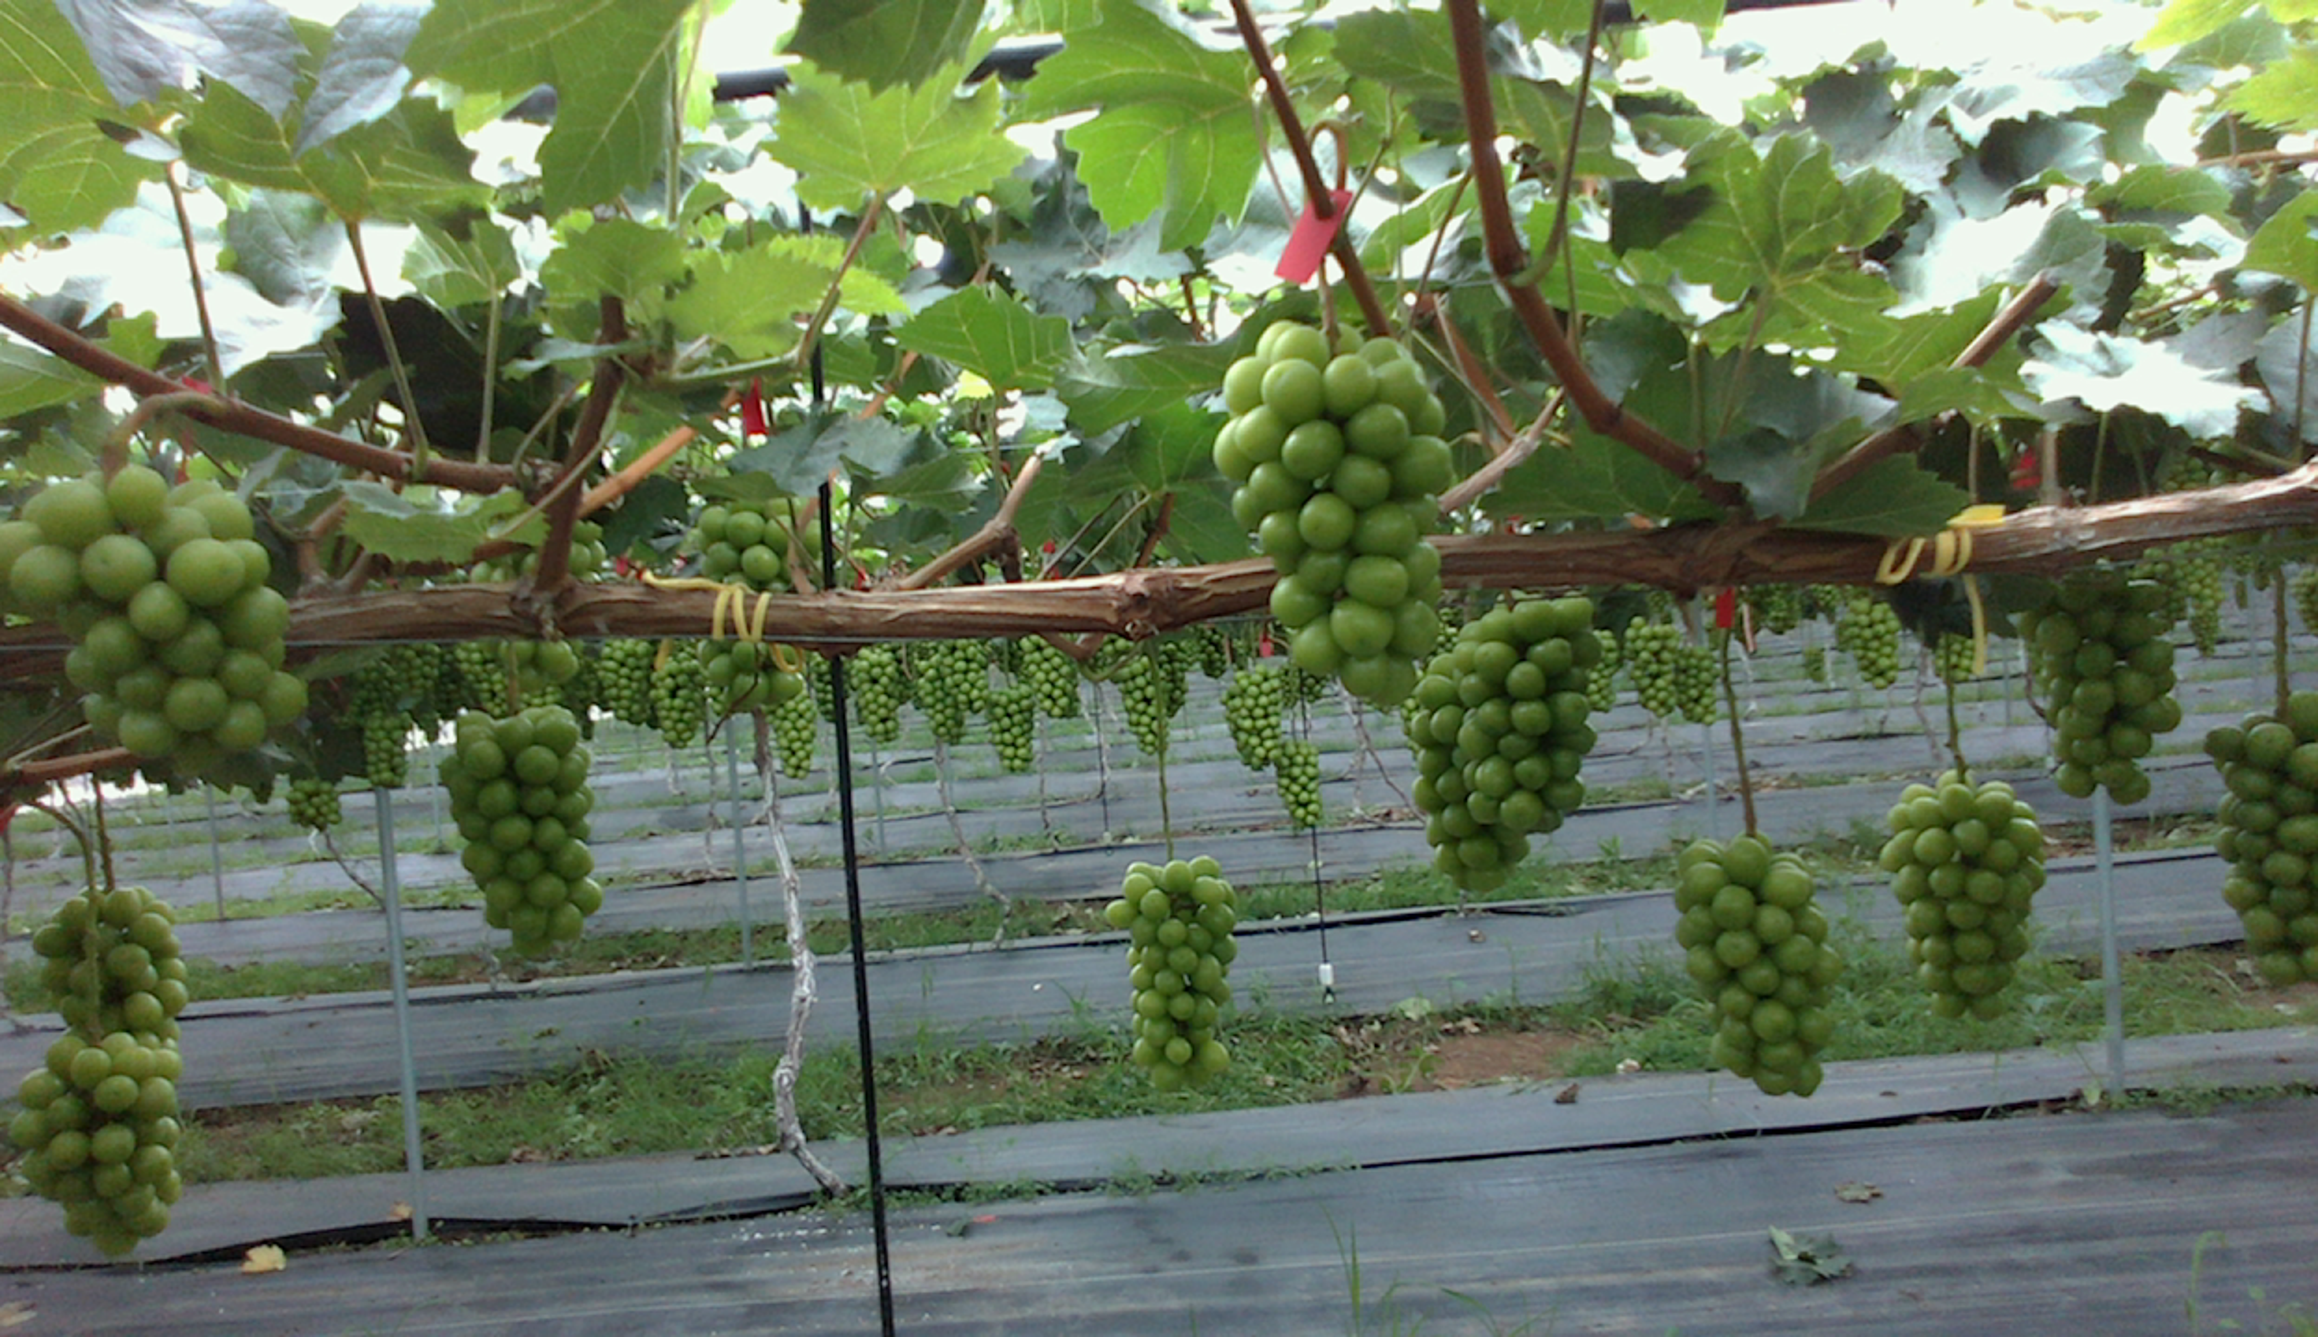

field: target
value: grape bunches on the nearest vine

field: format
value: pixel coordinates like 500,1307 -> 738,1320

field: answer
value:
1207,318 -> 1456,707
0,466 -> 308,778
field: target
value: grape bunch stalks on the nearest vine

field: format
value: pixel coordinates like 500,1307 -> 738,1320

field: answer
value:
1317,266 -> 1337,347
102,388 -> 206,472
